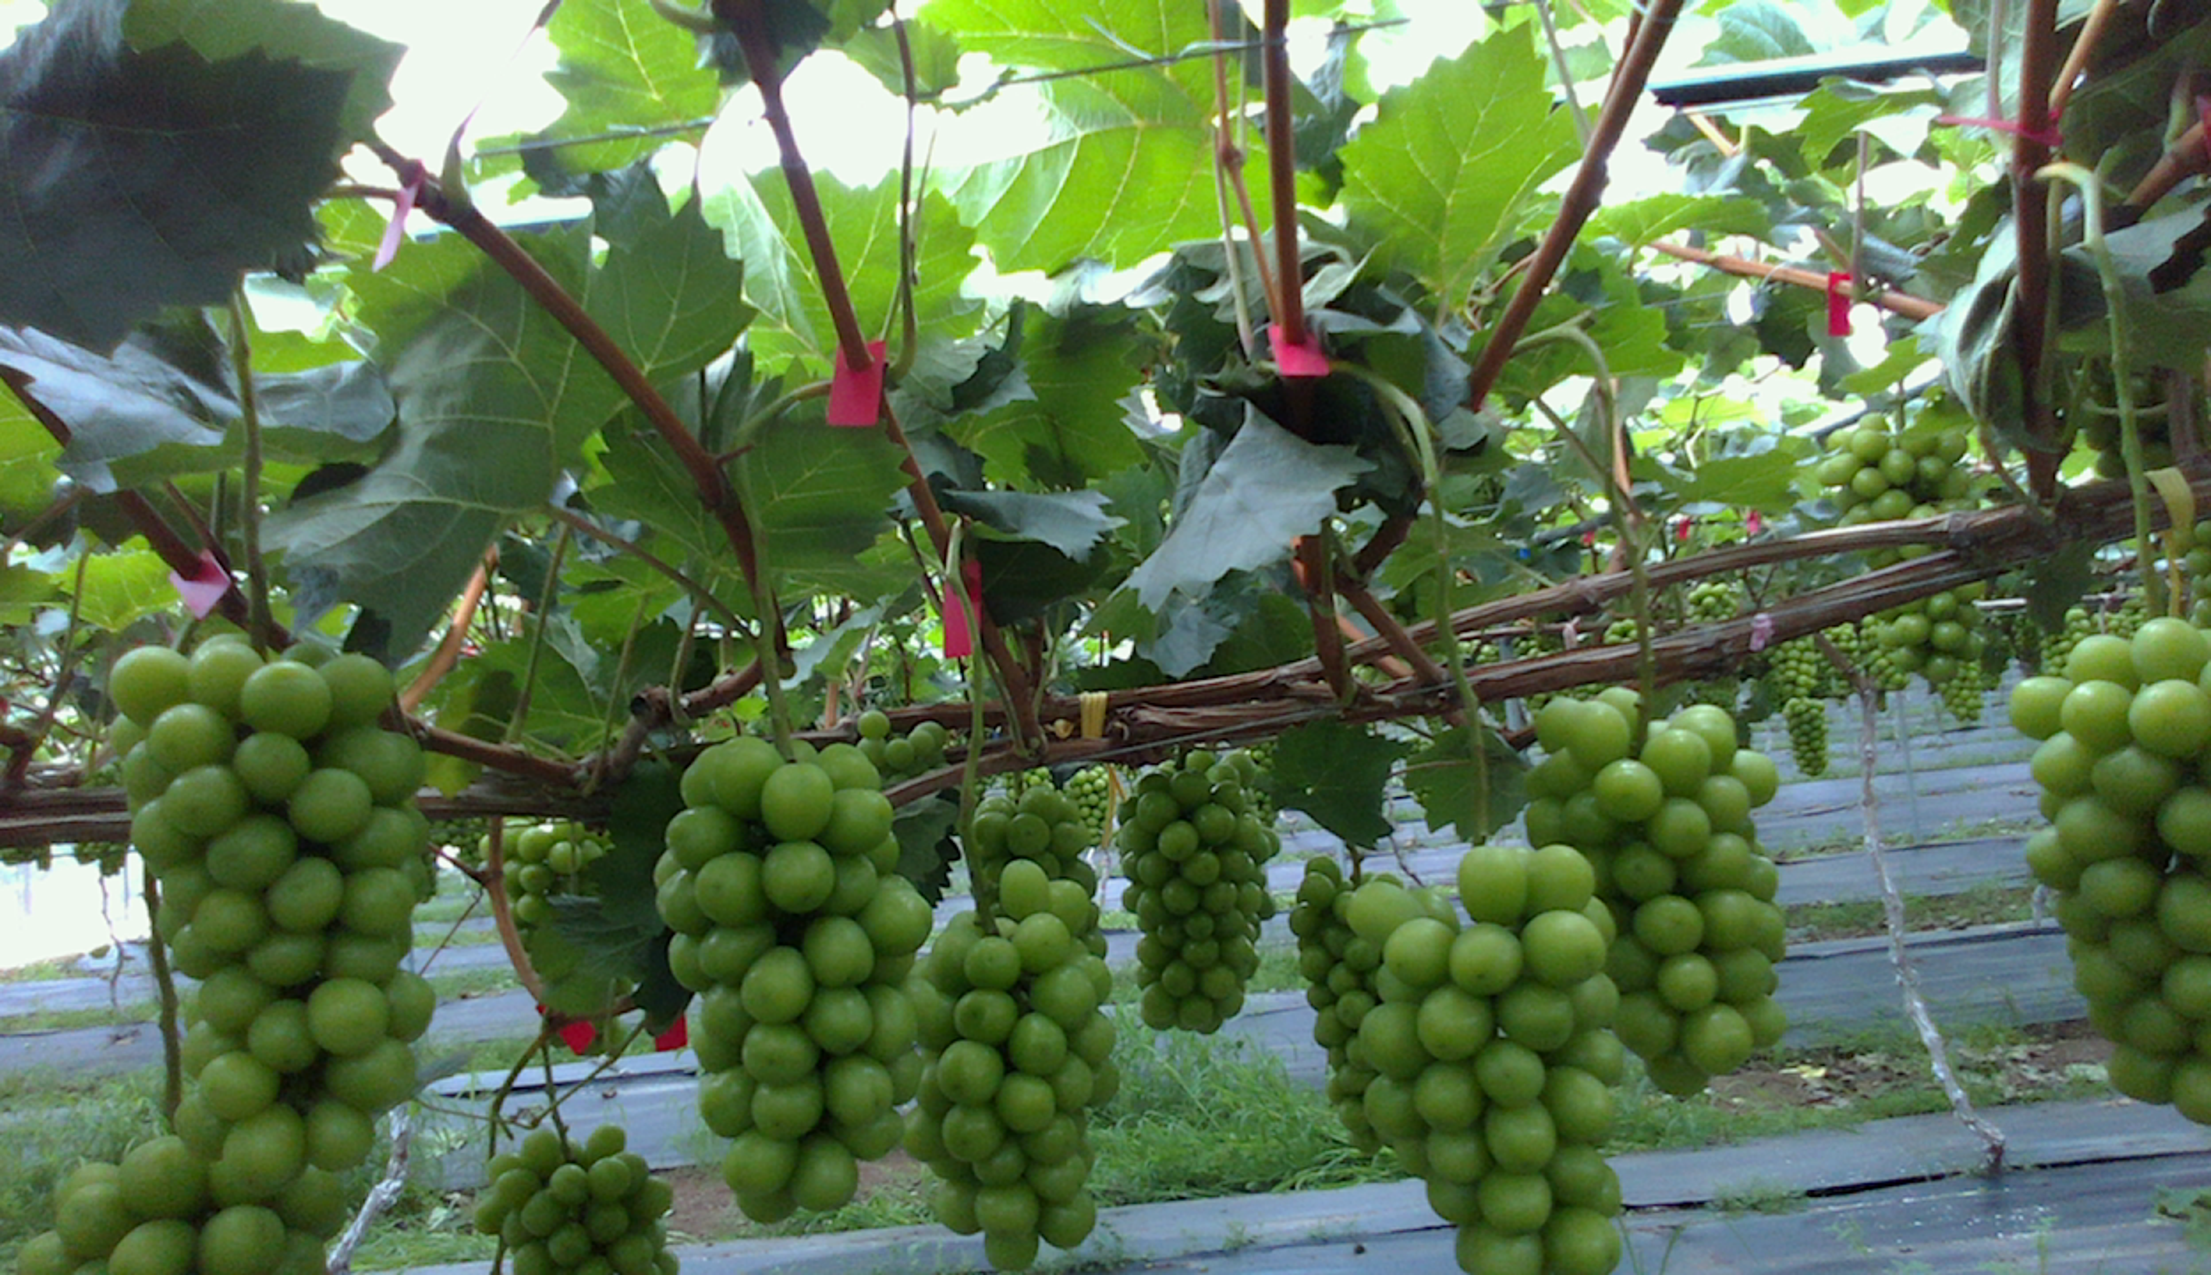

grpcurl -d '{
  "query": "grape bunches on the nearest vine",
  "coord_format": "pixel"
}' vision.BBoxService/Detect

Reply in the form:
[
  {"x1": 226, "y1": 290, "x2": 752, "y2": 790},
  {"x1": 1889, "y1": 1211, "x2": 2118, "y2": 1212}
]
[
  {"x1": 2013, "y1": 618, "x2": 2206, "y2": 1121},
  {"x1": 1343, "y1": 843, "x2": 1625, "y2": 1273},
  {"x1": 1524, "y1": 685, "x2": 1788, "y2": 1101},
  {"x1": 11, "y1": 1132, "x2": 345, "y2": 1273},
  {"x1": 898, "y1": 859, "x2": 1118, "y2": 1273},
  {"x1": 656, "y1": 735, "x2": 934, "y2": 1224},
  {"x1": 112, "y1": 634, "x2": 432, "y2": 1197}
]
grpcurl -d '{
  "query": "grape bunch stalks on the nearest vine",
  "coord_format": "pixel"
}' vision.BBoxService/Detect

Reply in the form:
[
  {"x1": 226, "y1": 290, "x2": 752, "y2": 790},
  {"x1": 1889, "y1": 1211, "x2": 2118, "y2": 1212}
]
[
  {"x1": 732, "y1": 381, "x2": 827, "y2": 763},
  {"x1": 1325, "y1": 358, "x2": 1490, "y2": 846},
  {"x1": 944, "y1": 519, "x2": 996, "y2": 933},
  {"x1": 1509, "y1": 328, "x2": 1651, "y2": 754},
  {"x1": 227, "y1": 182, "x2": 400, "y2": 657},
  {"x1": 2034, "y1": 166, "x2": 2167, "y2": 622}
]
